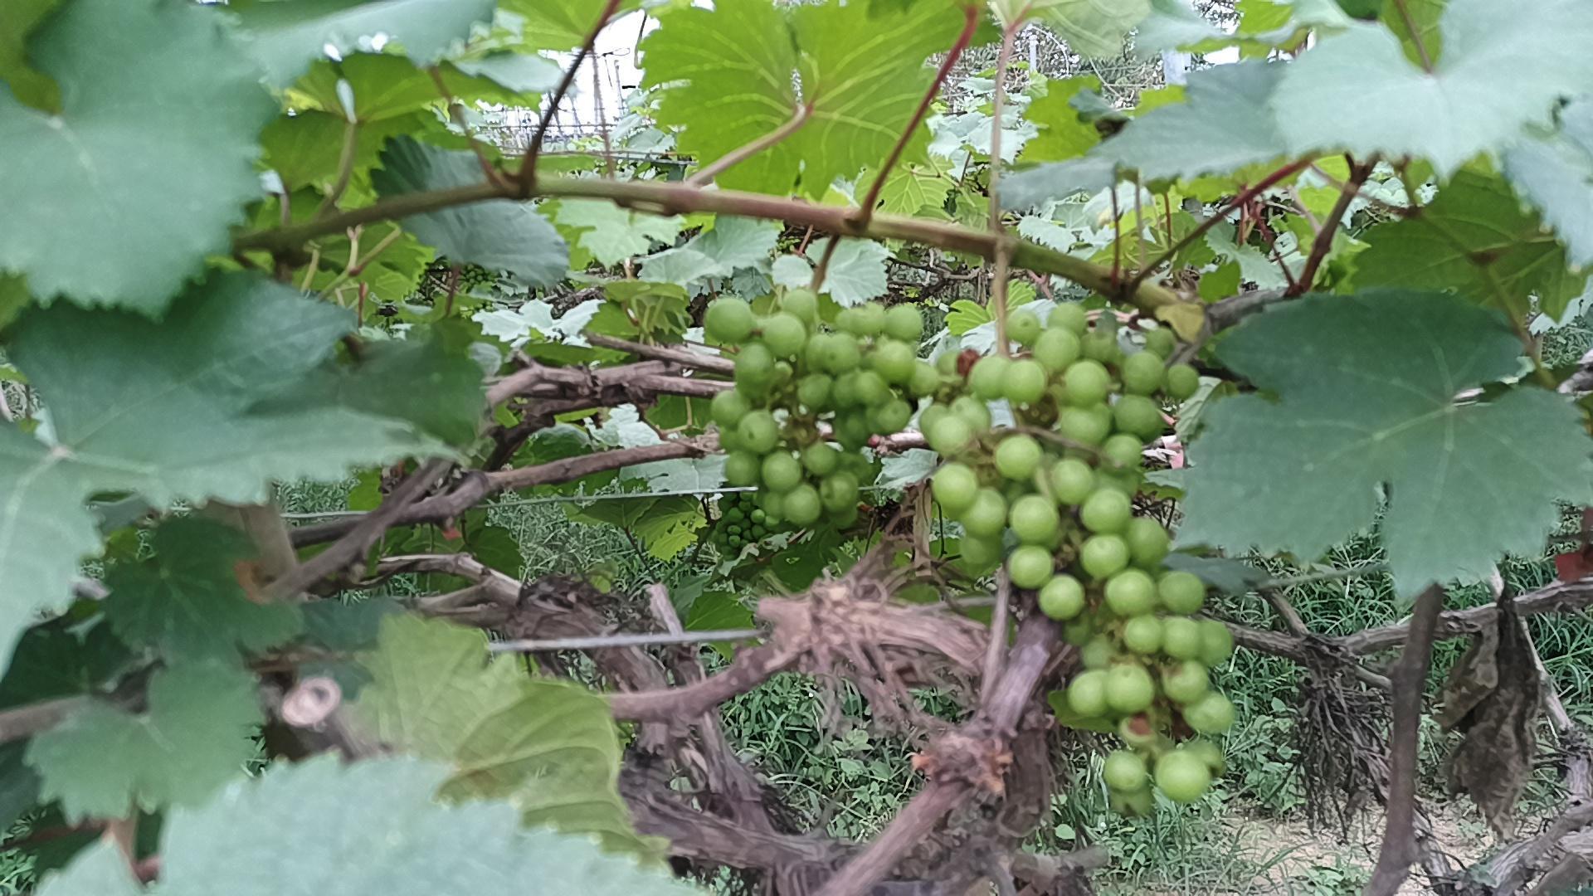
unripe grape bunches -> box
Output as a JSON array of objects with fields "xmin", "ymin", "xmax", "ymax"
[
  {"xmin": 922, "ymin": 301, "xmax": 1235, "ymax": 814},
  {"xmin": 706, "ymin": 290, "xmax": 939, "ymax": 562}
]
